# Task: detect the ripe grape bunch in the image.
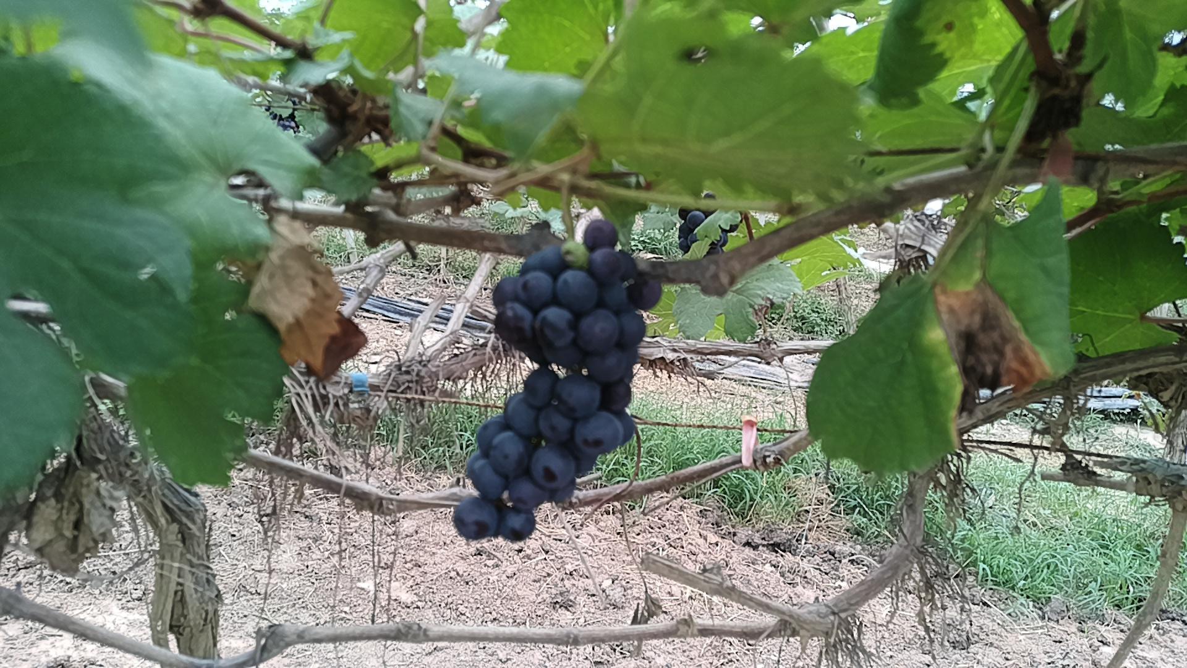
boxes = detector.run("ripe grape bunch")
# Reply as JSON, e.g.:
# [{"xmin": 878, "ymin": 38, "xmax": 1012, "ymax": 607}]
[{"xmin": 678, "ymin": 208, "xmax": 739, "ymax": 258}]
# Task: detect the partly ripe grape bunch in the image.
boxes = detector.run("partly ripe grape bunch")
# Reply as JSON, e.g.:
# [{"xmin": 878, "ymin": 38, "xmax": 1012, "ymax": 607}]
[{"xmin": 453, "ymin": 218, "xmax": 661, "ymax": 540}]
